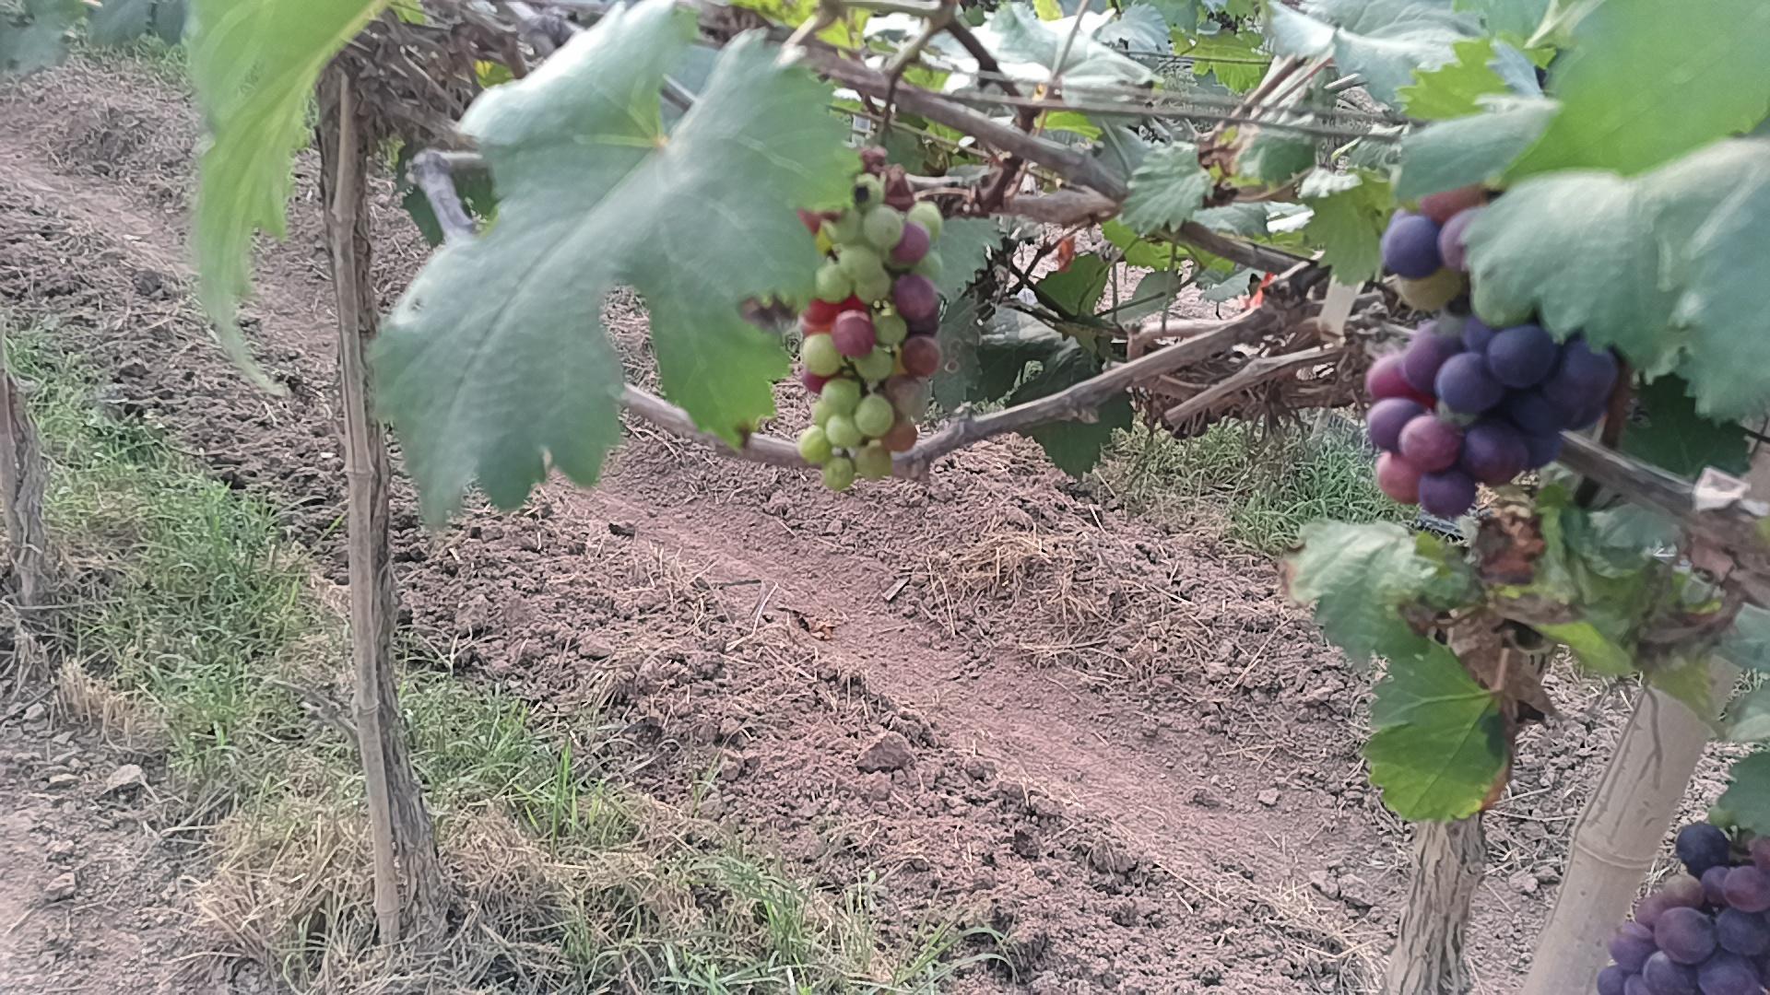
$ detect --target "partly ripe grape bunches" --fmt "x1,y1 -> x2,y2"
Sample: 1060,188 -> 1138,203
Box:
796,148 -> 942,489
1364,189 -> 1619,518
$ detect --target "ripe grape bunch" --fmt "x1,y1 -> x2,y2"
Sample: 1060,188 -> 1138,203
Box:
1595,822 -> 1769,994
